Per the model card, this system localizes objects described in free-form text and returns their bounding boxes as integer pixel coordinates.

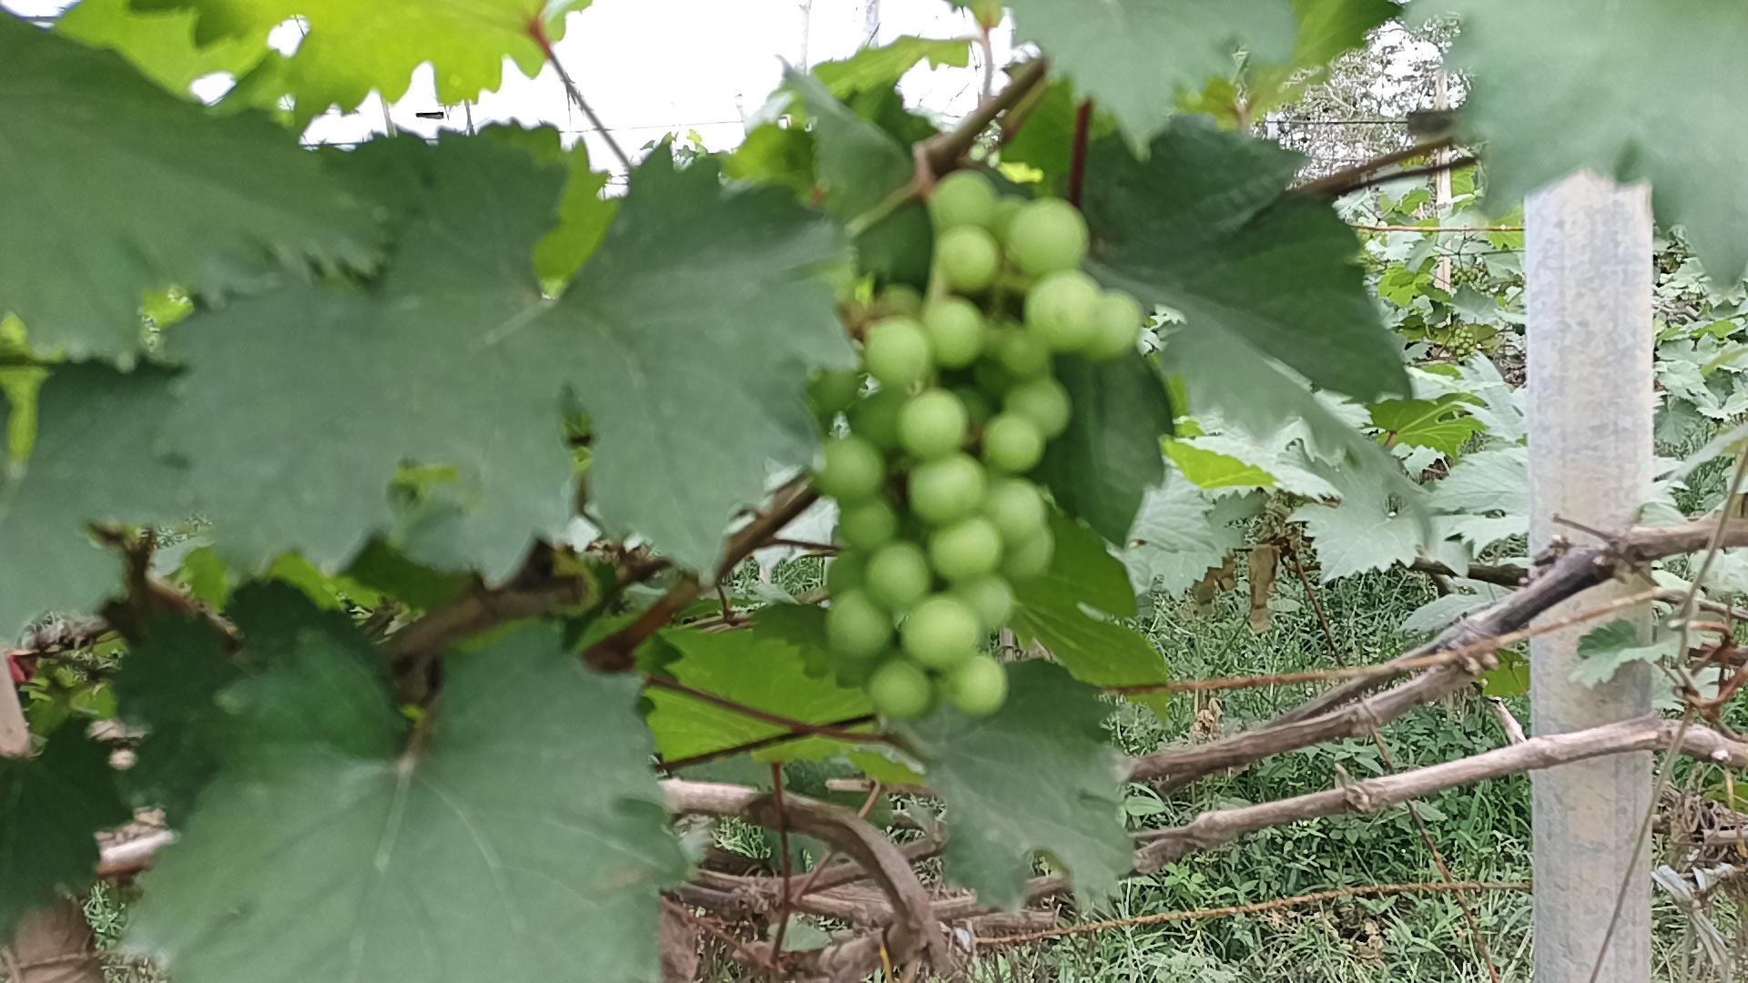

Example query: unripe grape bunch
[818,175,1143,720]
